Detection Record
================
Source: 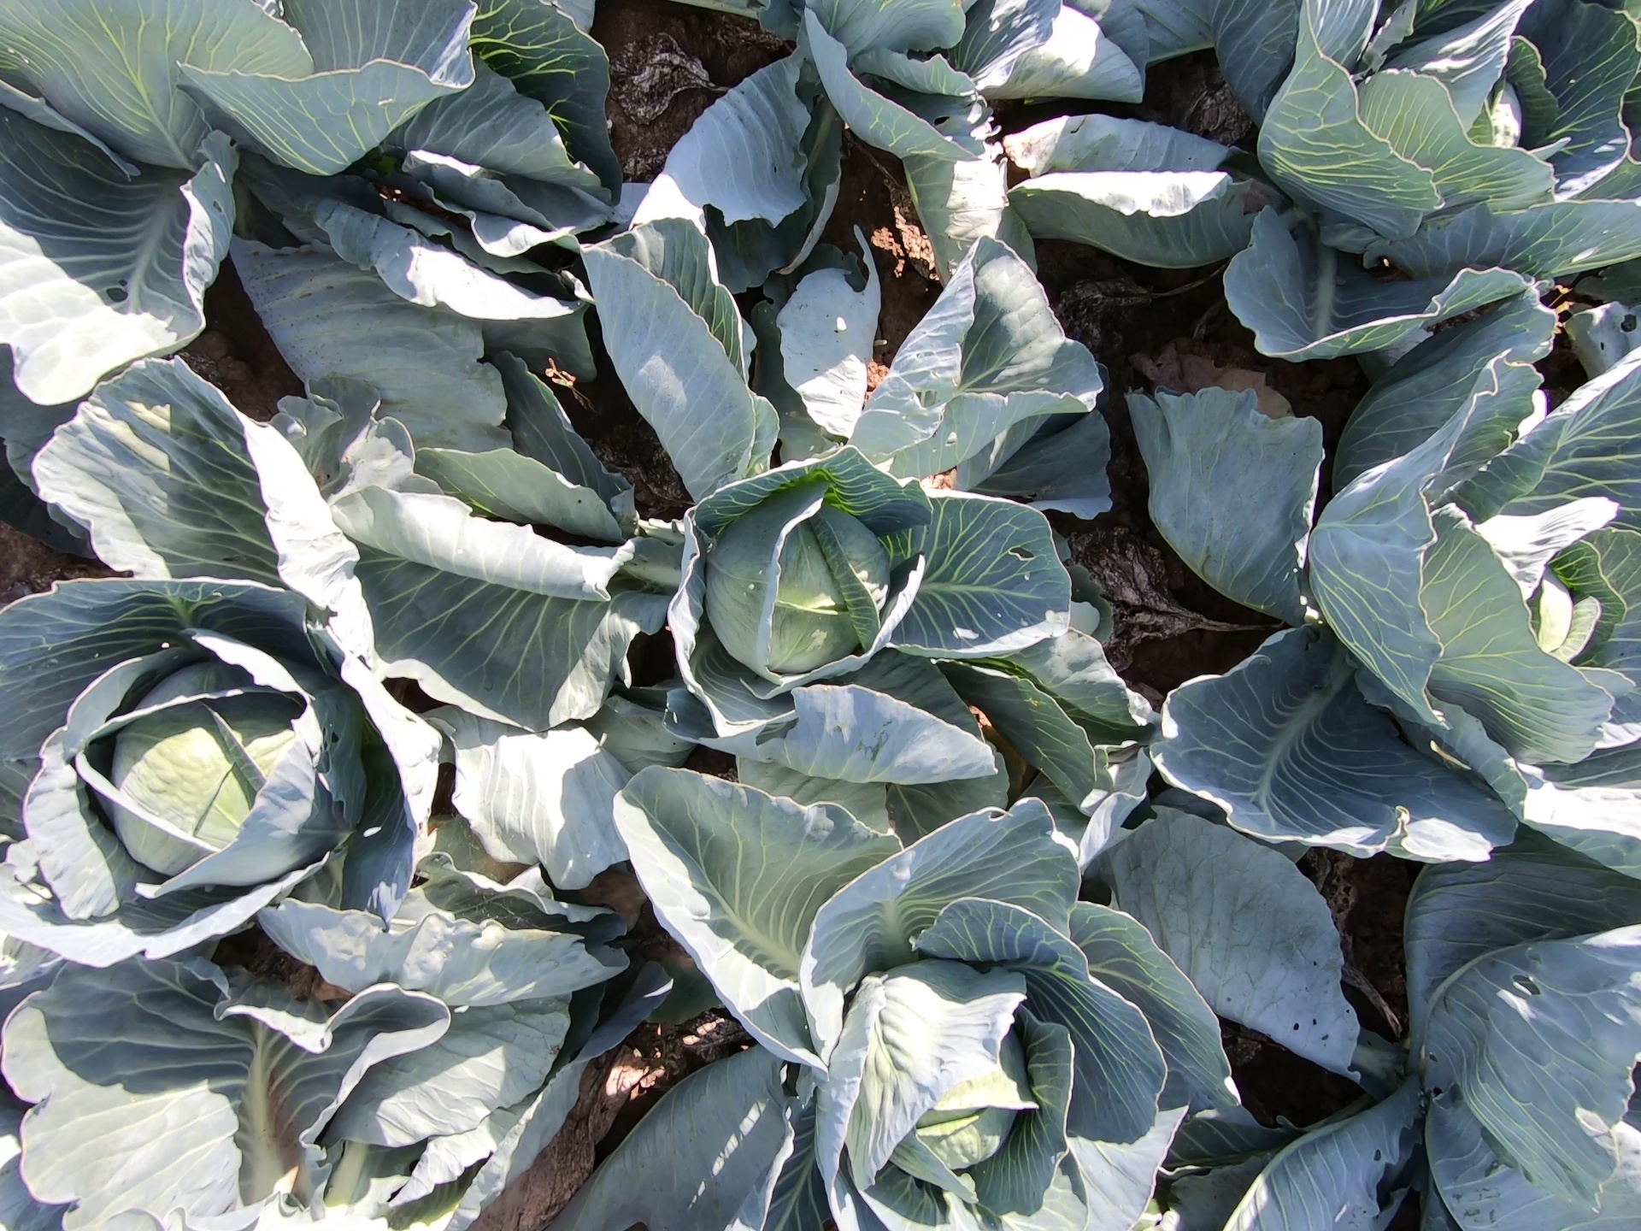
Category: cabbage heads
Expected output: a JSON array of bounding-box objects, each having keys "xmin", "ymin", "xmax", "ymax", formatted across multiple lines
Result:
[
  {"xmin": 109, "ymin": 661, "xmax": 343, "ymax": 875},
  {"xmin": 1405, "ymin": 69, "xmax": 1520, "ymax": 186},
  {"xmin": 704, "ymin": 502, "xmax": 887, "ymax": 668},
  {"xmin": 1478, "ymin": 563, "xmax": 1583, "ymax": 688},
  {"xmin": 852, "ymin": 970, "xmax": 1024, "ymax": 1168}
]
